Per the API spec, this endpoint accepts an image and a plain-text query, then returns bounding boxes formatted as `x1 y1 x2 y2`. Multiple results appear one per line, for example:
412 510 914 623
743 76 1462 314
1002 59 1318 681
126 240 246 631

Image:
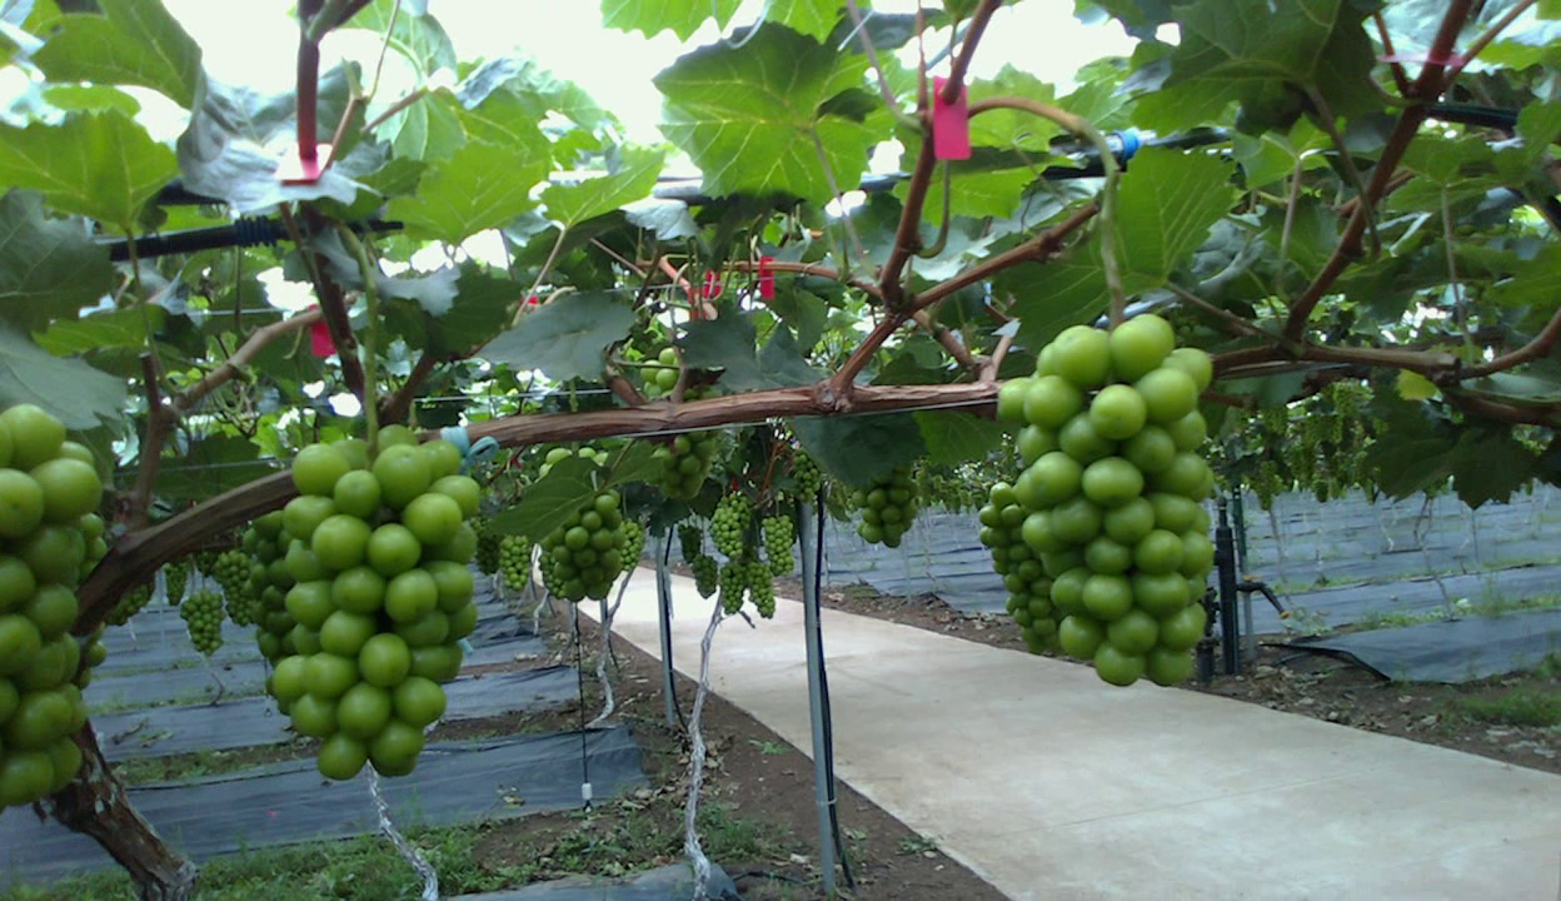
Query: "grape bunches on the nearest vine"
997 312 1217 687
0 402 101 813
273 424 483 783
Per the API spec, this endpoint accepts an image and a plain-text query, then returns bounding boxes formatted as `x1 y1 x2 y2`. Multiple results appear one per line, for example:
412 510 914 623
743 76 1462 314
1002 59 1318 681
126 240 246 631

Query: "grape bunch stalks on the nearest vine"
968 95 1124 329
318 215 378 469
